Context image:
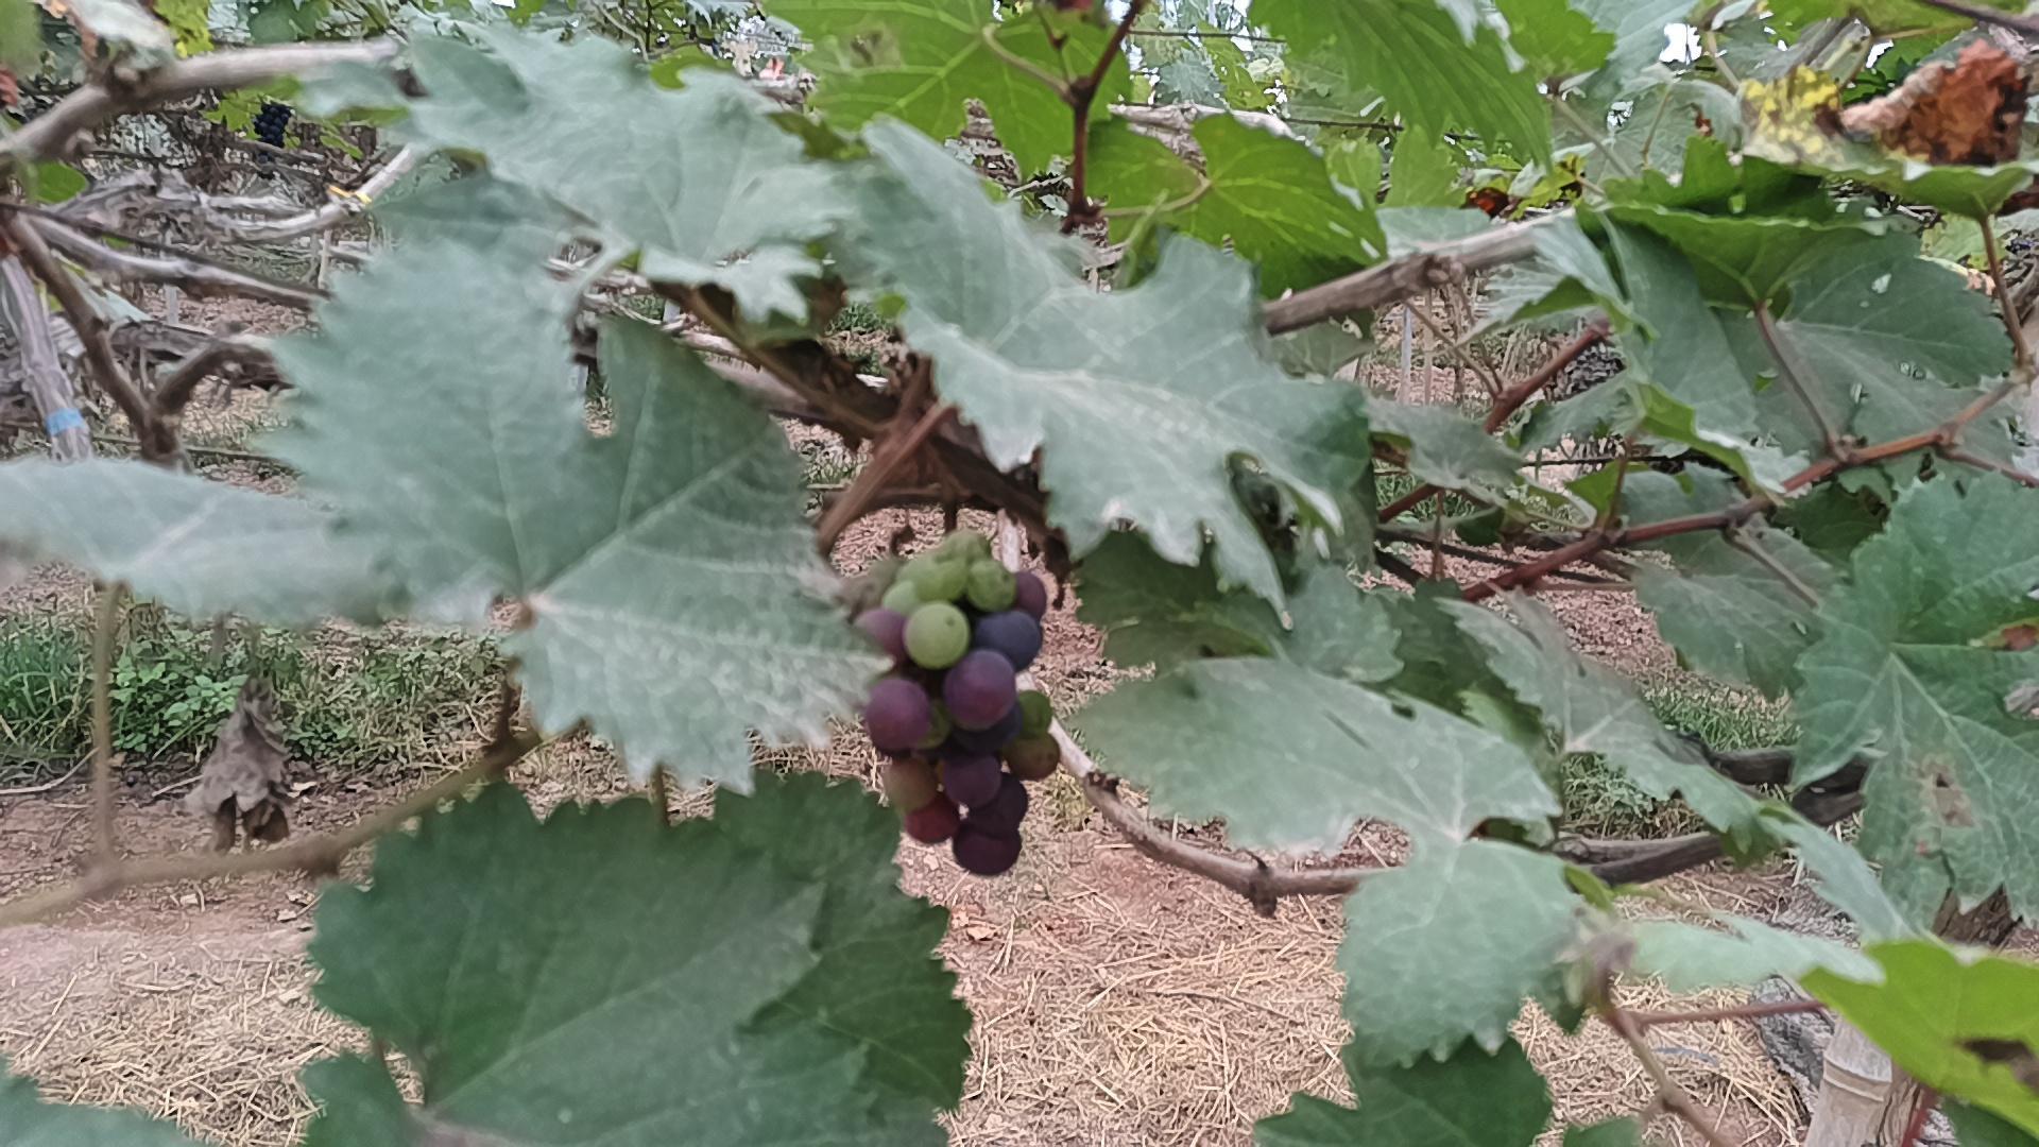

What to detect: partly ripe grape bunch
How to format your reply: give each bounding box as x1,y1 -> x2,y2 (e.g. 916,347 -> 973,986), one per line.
847,532 -> 1060,875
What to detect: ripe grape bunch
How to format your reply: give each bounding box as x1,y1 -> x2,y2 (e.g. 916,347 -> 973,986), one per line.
253,101 -> 292,179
